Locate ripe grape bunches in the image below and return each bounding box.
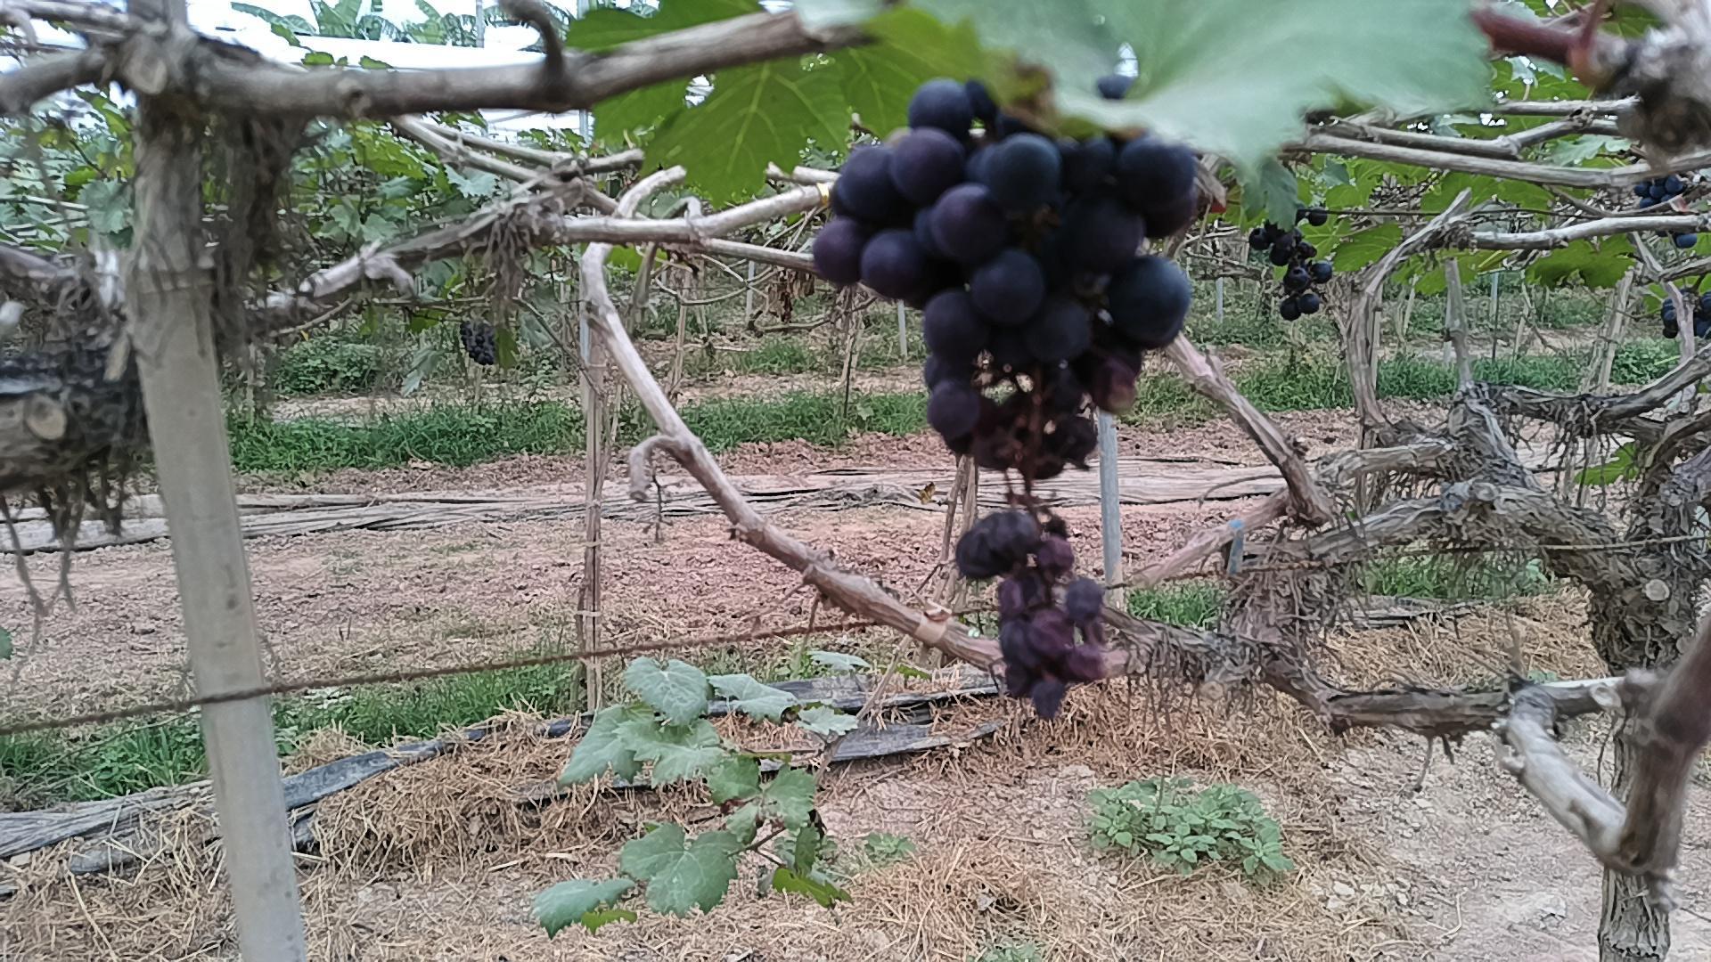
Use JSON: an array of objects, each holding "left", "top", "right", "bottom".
[
  {"left": 1248, "top": 207, "right": 1333, "bottom": 322},
  {"left": 1655, "top": 230, "right": 1698, "bottom": 250},
  {"left": 1094, "top": 74, "right": 1141, "bottom": 102},
  {"left": 1692, "top": 291, "right": 1710, "bottom": 340},
  {"left": 459, "top": 321, "right": 497, "bottom": 366},
  {"left": 811, "top": 77, "right": 1213, "bottom": 723},
  {"left": 1659, "top": 297, "right": 1681, "bottom": 340},
  {"left": 1632, "top": 174, "right": 1690, "bottom": 209}
]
